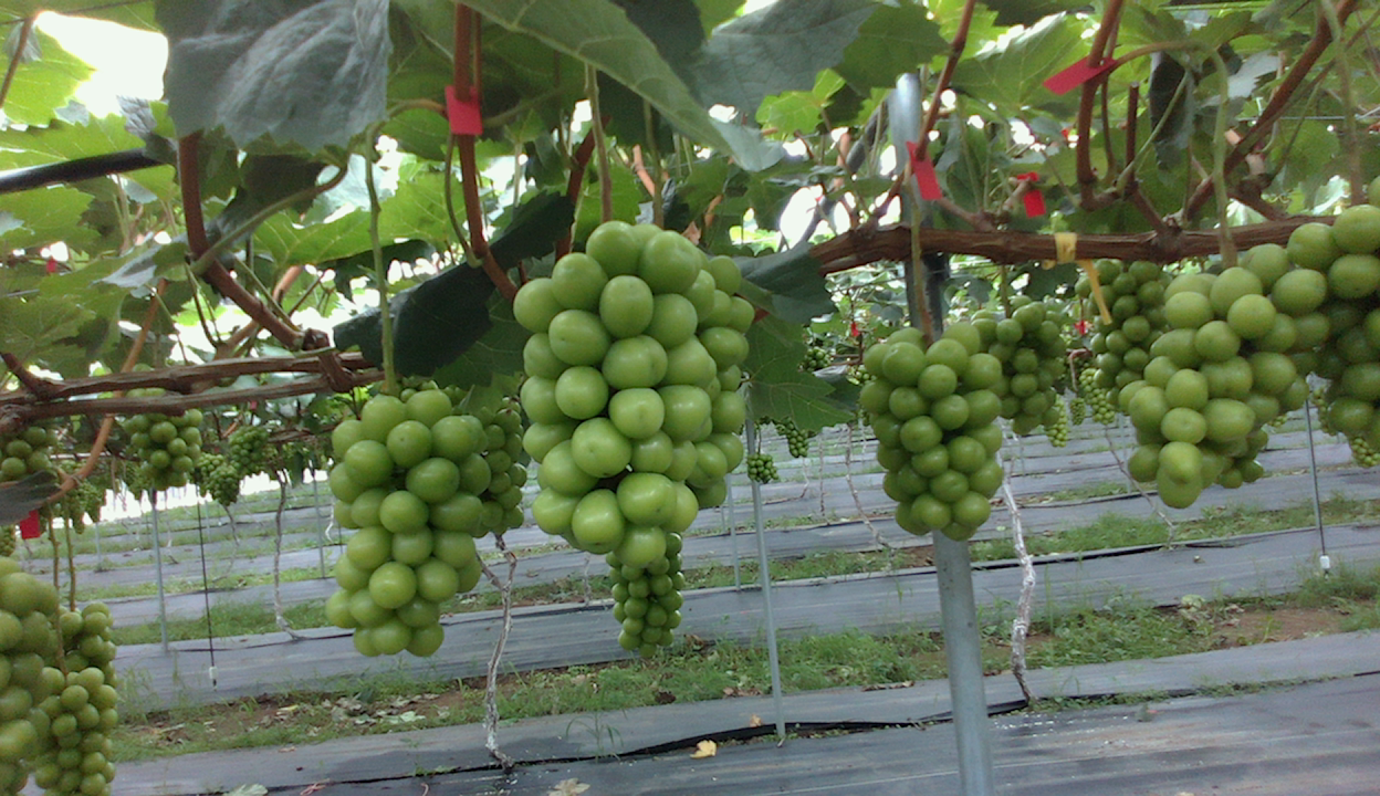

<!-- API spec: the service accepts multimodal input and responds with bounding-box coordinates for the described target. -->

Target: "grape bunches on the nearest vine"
[689,255,754,512]
[1288,177,1378,450]
[512,220,715,569]
[325,390,490,658]
[1117,241,1330,512]
[859,321,1004,541]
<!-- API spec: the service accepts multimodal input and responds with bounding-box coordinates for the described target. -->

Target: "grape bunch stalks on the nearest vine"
[582,65,611,219]
[1317,1,1366,202]
[1121,39,1238,269]
[642,103,663,224]
[902,161,931,346]
[365,98,436,397]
